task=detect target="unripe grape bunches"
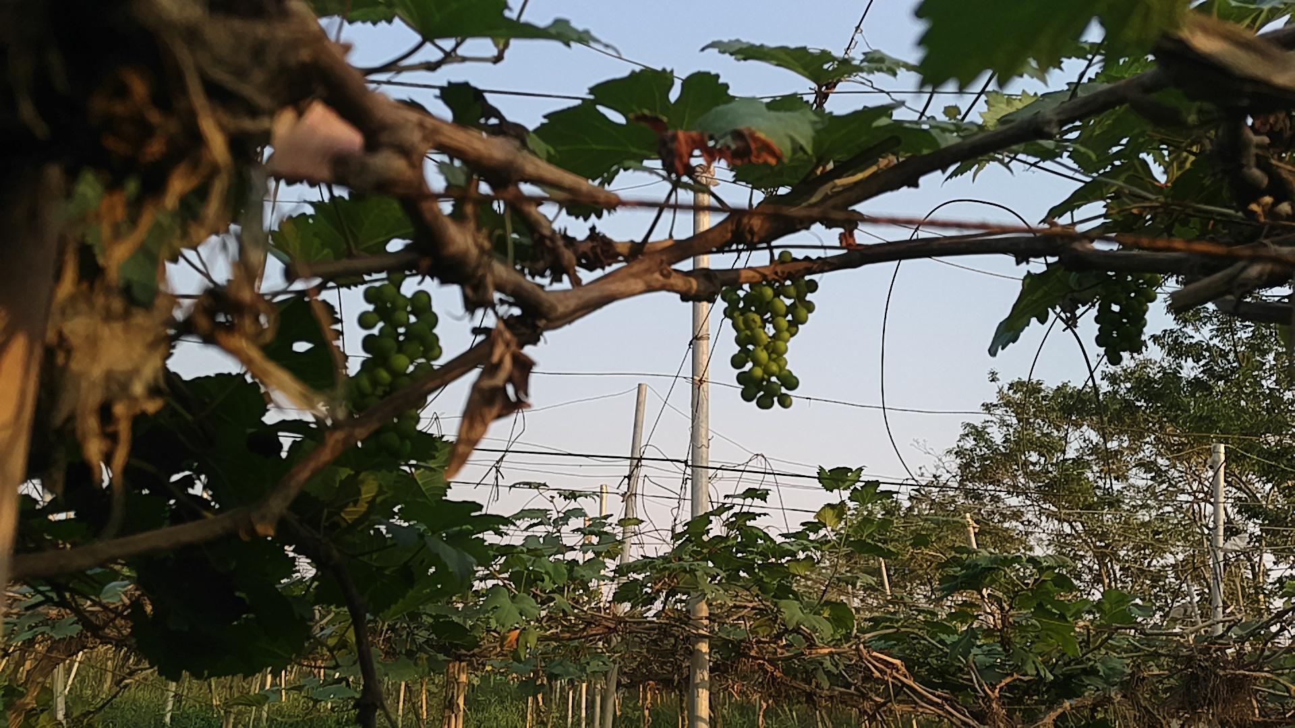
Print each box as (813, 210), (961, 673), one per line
(349, 273), (442, 471)
(1094, 268), (1162, 366)
(721, 251), (817, 410)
